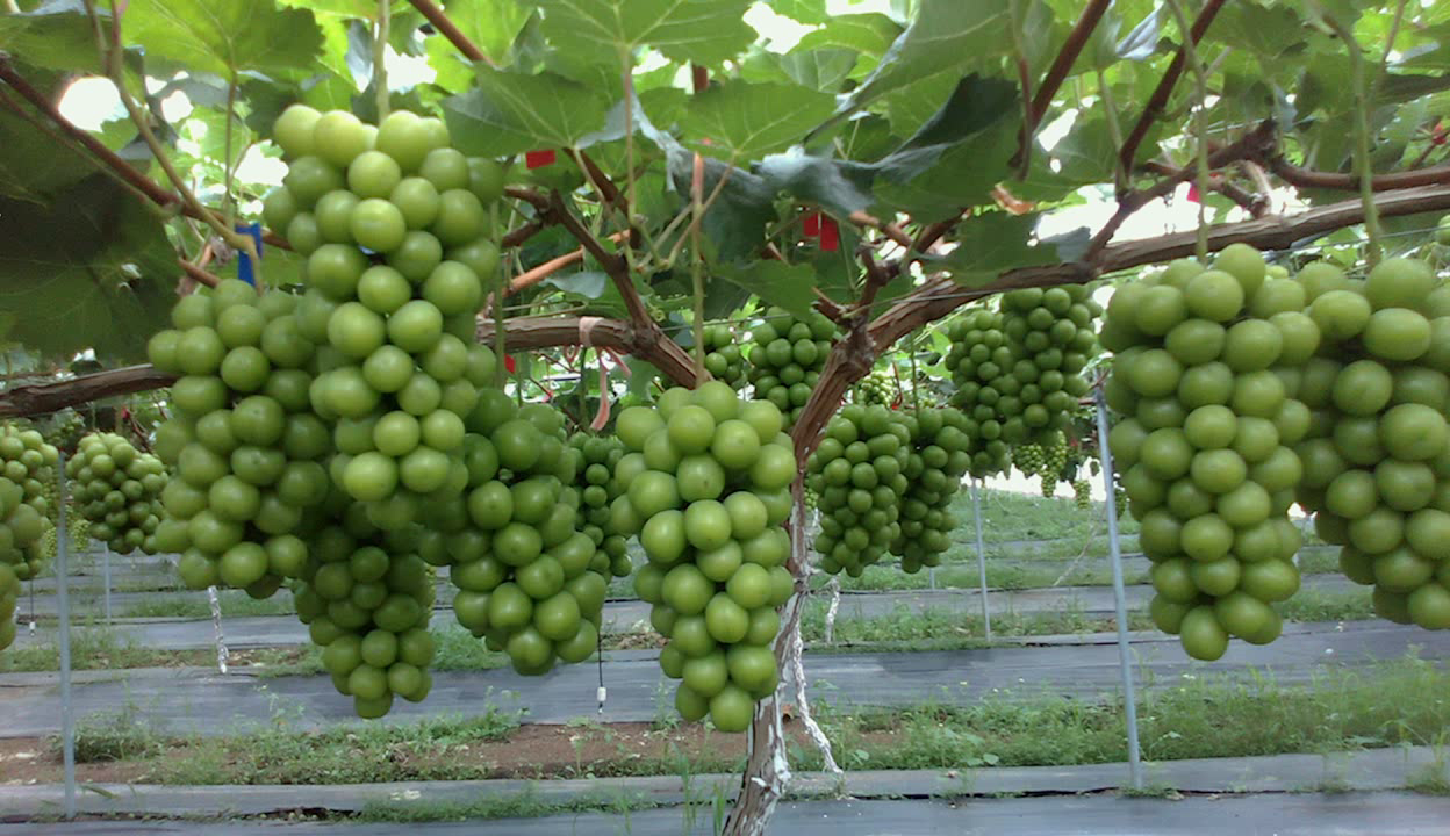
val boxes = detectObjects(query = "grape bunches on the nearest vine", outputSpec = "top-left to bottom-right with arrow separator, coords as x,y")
265,103 -> 504,528
411,385 -> 608,677
610,380 -> 796,735
1099,243 -> 1320,660
146,278 -> 337,600
293,477 -> 433,719
1285,257 -> 1449,633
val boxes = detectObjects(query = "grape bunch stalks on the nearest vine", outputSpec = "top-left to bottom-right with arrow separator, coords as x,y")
1167,0 -> 1209,267
372,0 -> 392,127
1319,10 -> 1383,271
235,233 -> 263,295
692,152 -> 706,385
484,203 -> 507,390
